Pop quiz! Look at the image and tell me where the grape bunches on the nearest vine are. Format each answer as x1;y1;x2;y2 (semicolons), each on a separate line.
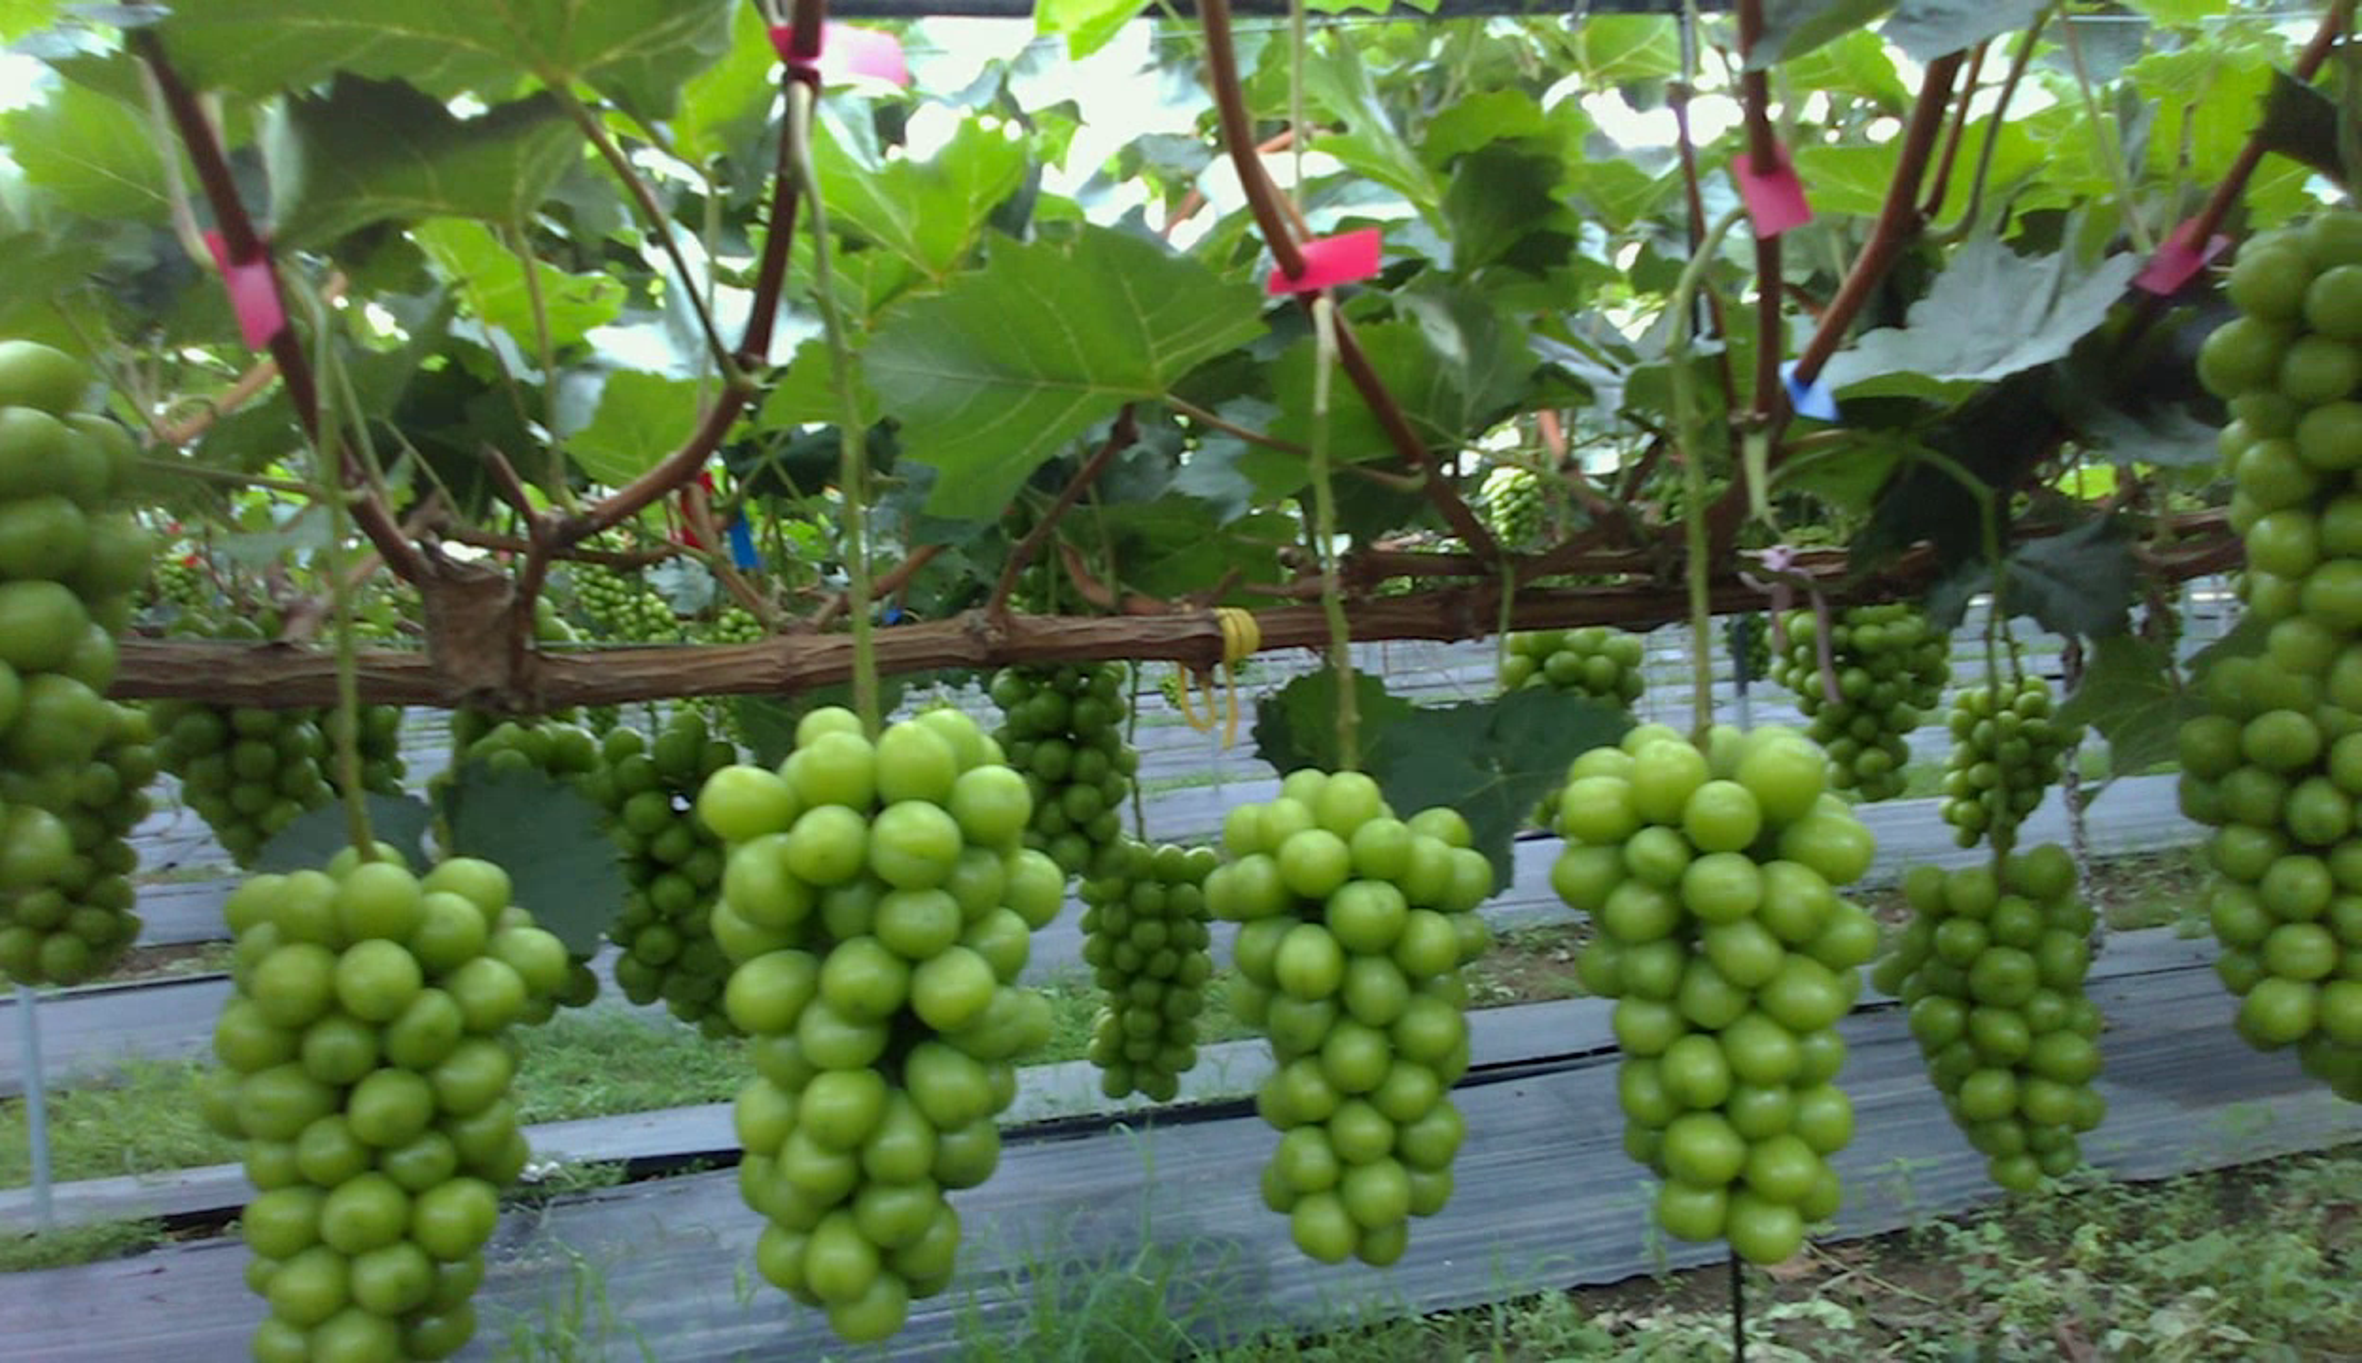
1548;723;1877;1259
199;844;570;1361
2171;657;2360;1102
1866;844;2110;1196
698;706;1069;1350
2197;210;2360;716
1206;765;1499;1270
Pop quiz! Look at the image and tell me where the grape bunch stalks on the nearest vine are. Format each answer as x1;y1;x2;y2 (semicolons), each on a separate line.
1313;303;1359;772
1794;426;2010;892
2339;19;2360;197
1671;206;1743;755
784;87;880;740
284;265;379;861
